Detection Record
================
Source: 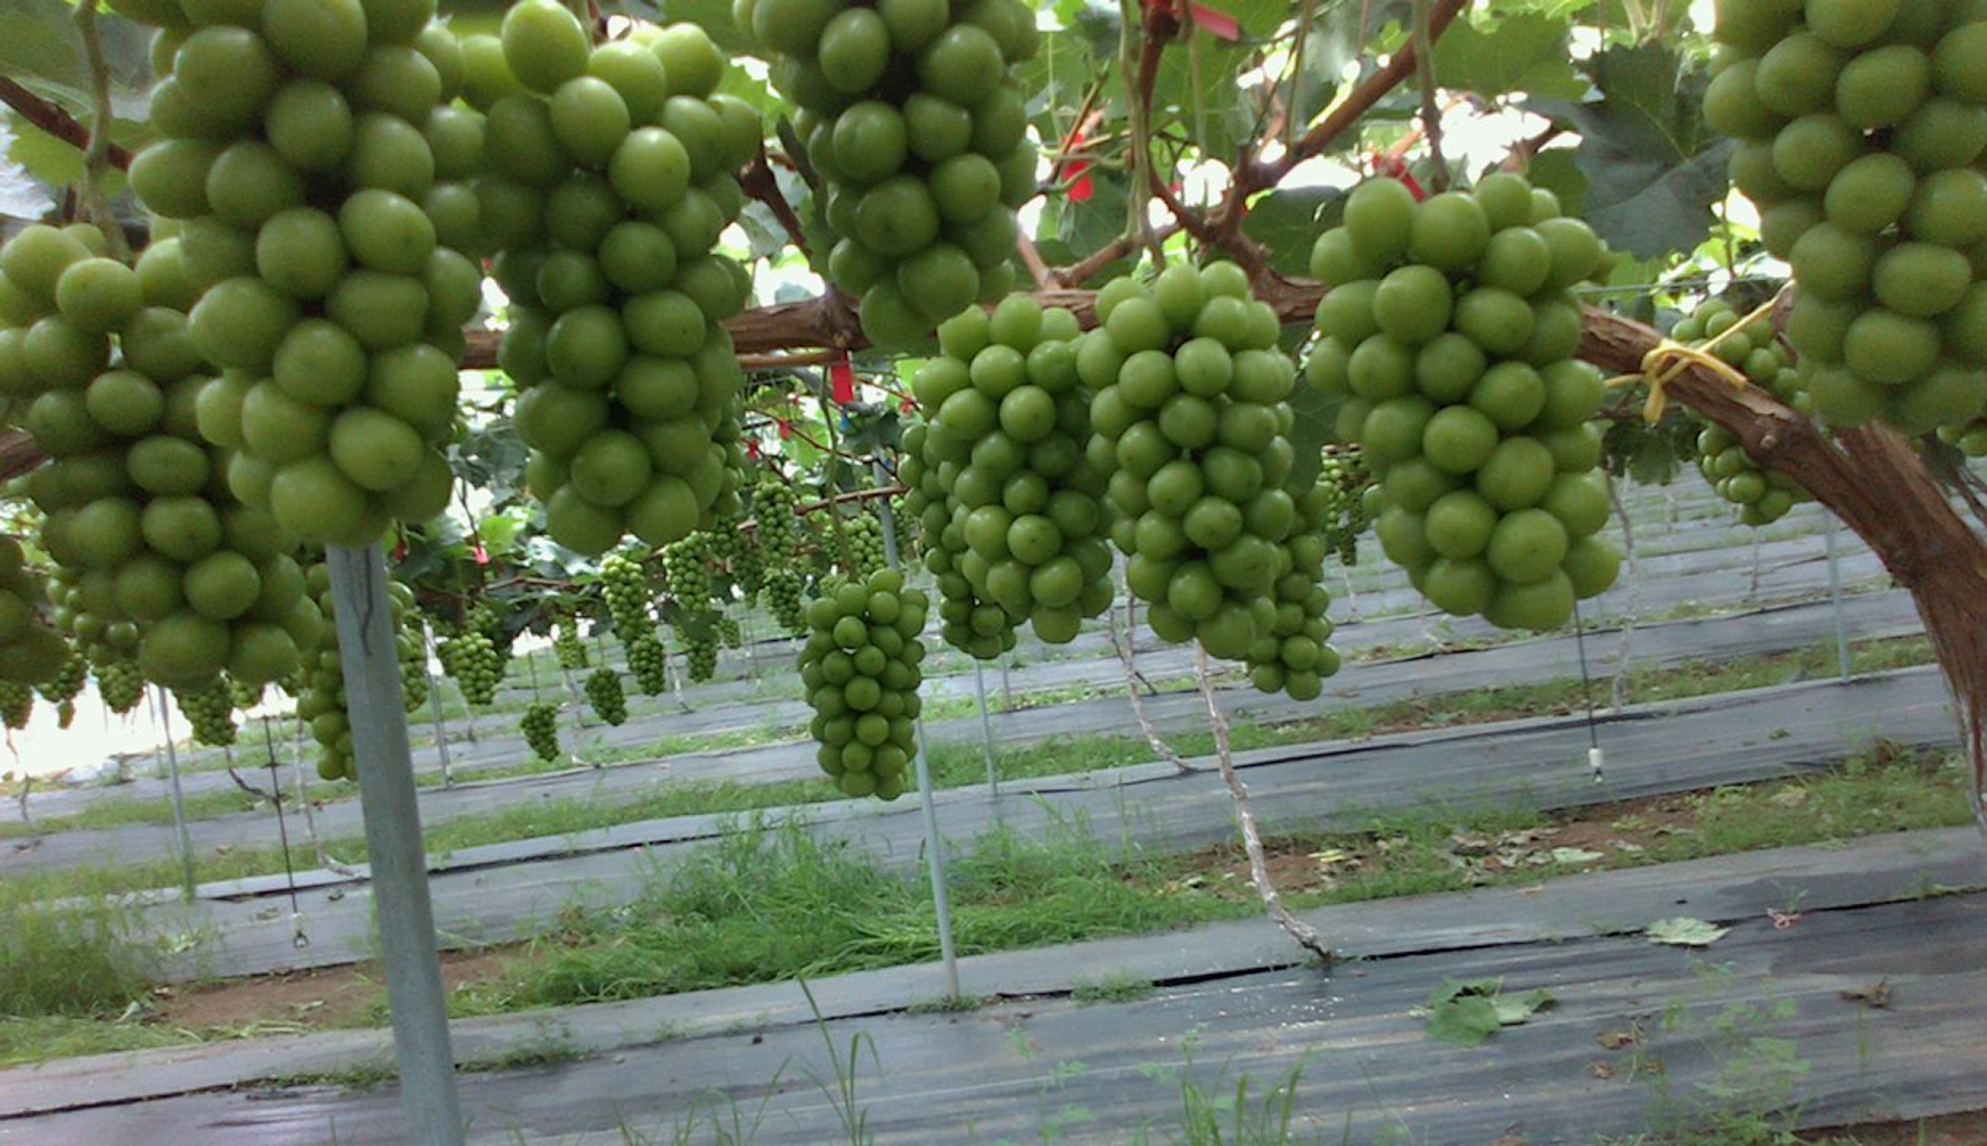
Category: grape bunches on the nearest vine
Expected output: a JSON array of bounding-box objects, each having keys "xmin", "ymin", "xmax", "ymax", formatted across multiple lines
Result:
[
  {"xmin": 734, "ymin": 0, "xmax": 1040, "ymax": 355},
  {"xmin": 111, "ymin": 0, "xmax": 487, "ymax": 551},
  {"xmin": 462, "ymin": 2, "xmax": 761, "ymax": 560},
  {"xmin": 1306, "ymin": 170, "xmax": 1622, "ymax": 629},
  {"xmin": 1073, "ymin": 259, "xmax": 1298, "ymax": 656},
  {"xmin": 0, "ymin": 224, "xmax": 328, "ymax": 697},
  {"xmin": 1700, "ymin": 2, "xmax": 1985, "ymax": 431},
  {"xmin": 911, "ymin": 296, "xmax": 1115, "ymax": 641}
]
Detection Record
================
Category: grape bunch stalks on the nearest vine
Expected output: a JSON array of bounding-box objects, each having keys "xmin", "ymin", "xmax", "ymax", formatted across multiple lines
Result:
[
  {"xmin": 70, "ymin": 3, "xmax": 139, "ymax": 269},
  {"xmin": 1115, "ymin": 0, "xmax": 1162, "ymax": 271},
  {"xmin": 1407, "ymin": 0, "xmax": 1447, "ymax": 194}
]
